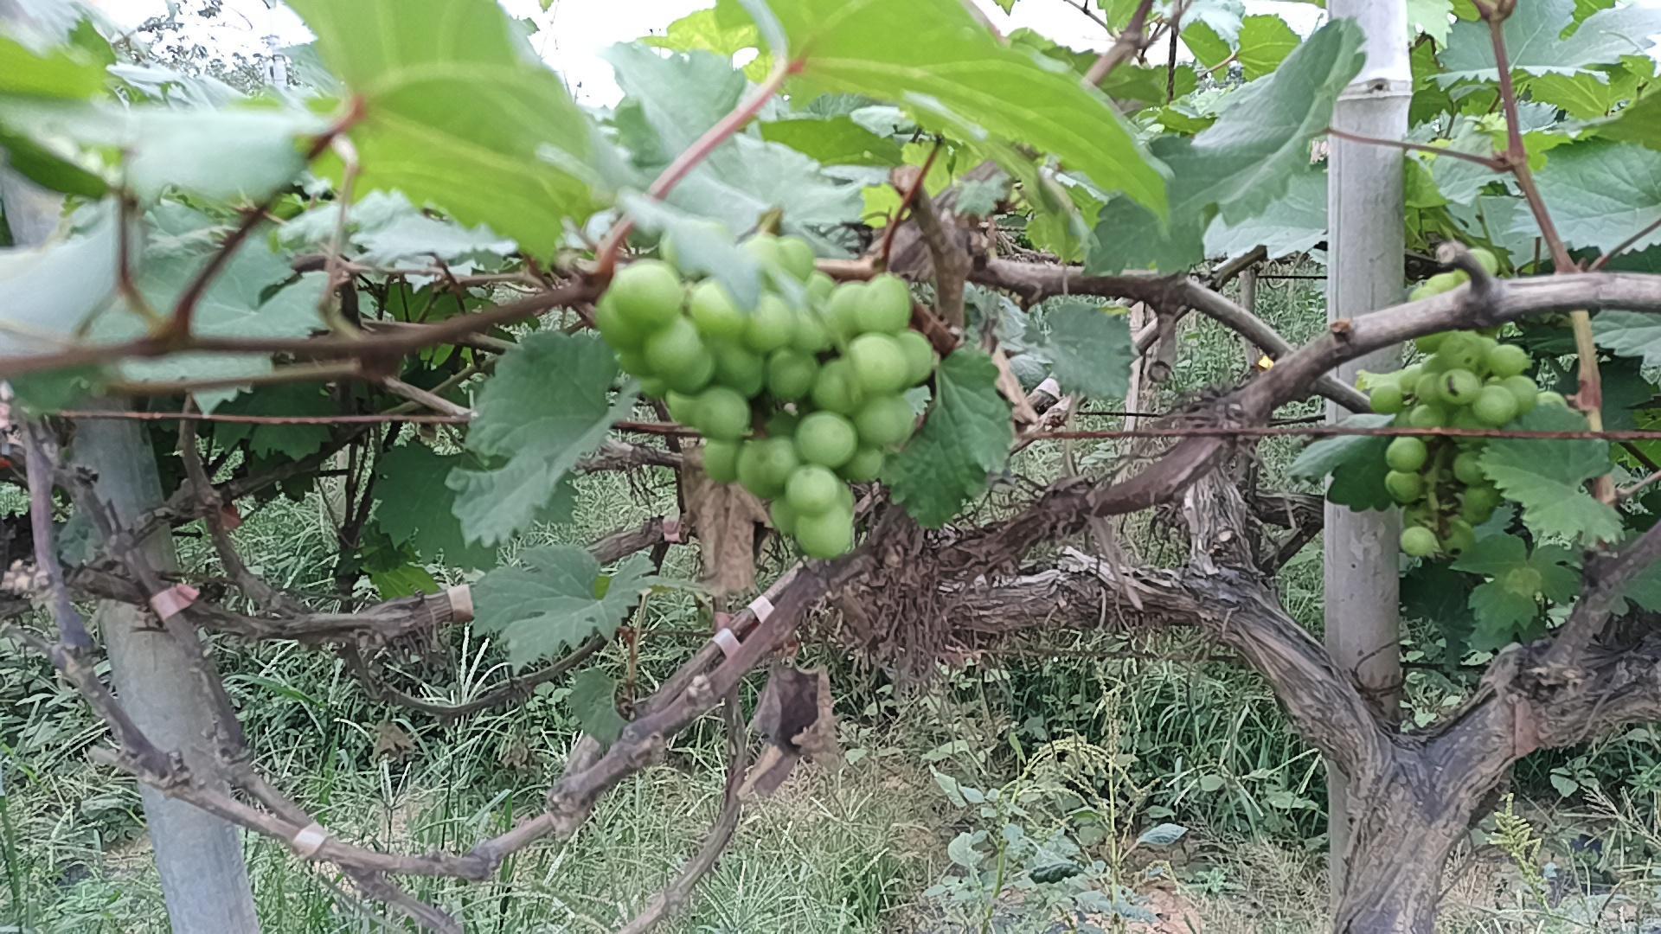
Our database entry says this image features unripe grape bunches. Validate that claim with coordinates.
[1357,241,1558,557]
[596,232,935,558]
